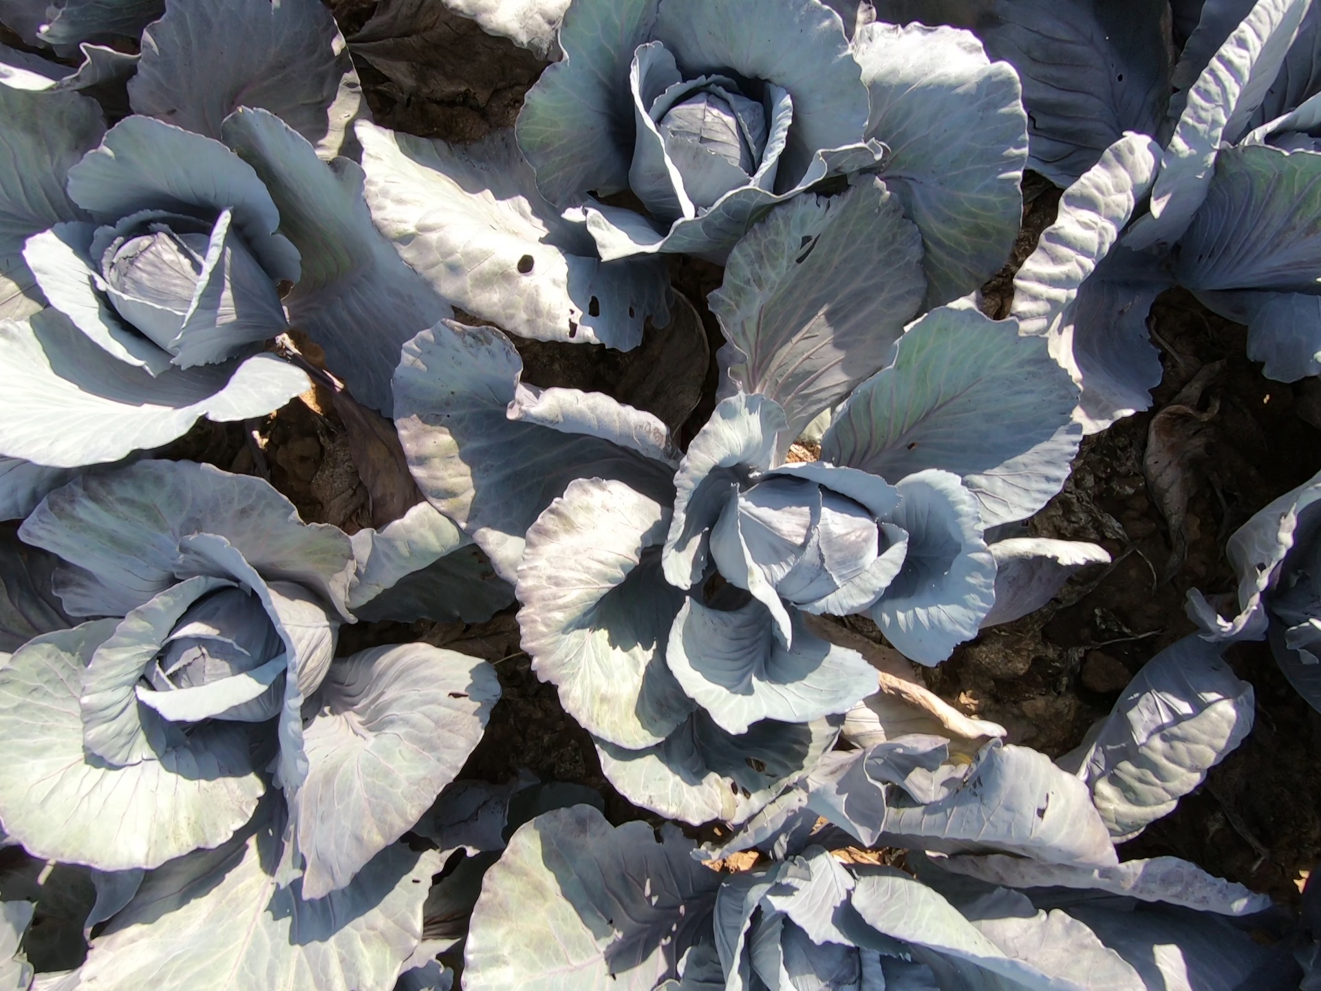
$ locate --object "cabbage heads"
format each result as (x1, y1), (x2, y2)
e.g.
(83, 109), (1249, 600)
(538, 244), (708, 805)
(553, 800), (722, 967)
(154, 589), (308, 715)
(101, 230), (258, 347)
(767, 882), (870, 989)
(656, 90), (758, 211)
(726, 477), (875, 610)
